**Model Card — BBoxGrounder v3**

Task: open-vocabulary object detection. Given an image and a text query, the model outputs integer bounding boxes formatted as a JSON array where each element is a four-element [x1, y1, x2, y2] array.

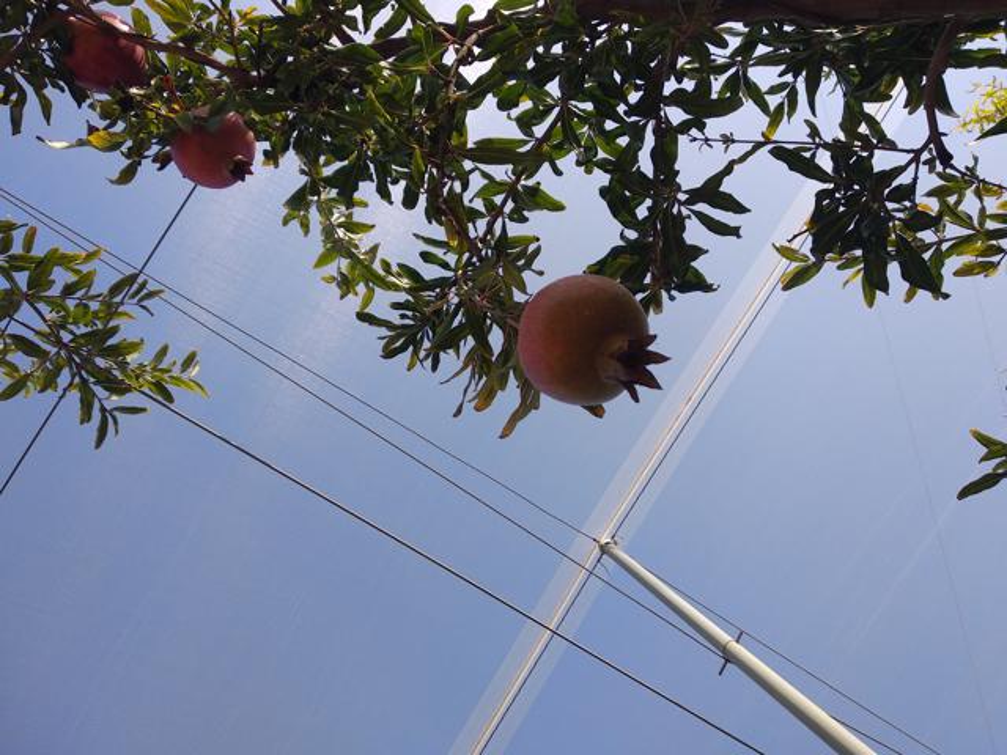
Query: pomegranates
[[170, 112, 255, 189], [516, 274, 672, 406], [61, 8, 146, 91]]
